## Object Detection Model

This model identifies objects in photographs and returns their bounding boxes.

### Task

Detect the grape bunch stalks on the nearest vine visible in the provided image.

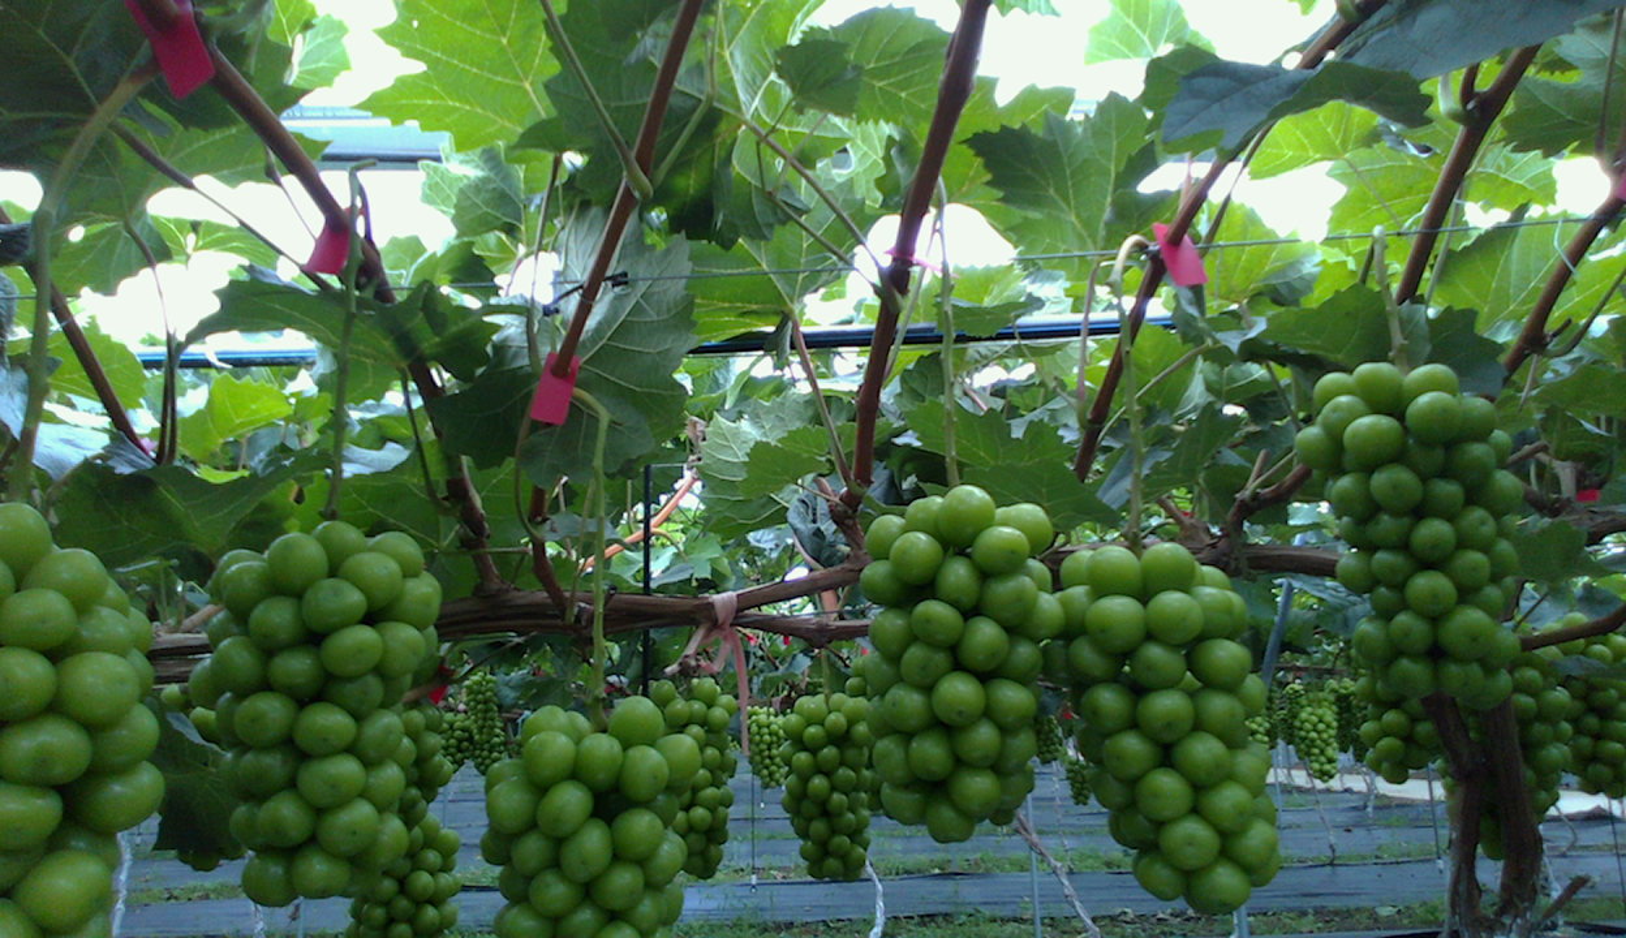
[935,180,960,487]
[1109,237,1145,552]
[1372,225,1412,369]
[323,168,360,517]
[8,59,162,503]
[575,391,621,730]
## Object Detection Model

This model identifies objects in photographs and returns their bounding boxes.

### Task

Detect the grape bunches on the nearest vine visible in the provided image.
[479,698,701,935]
[1040,542,1285,916]
[189,521,439,911]
[1289,361,1524,710]
[857,483,1064,847]
[1,503,164,937]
